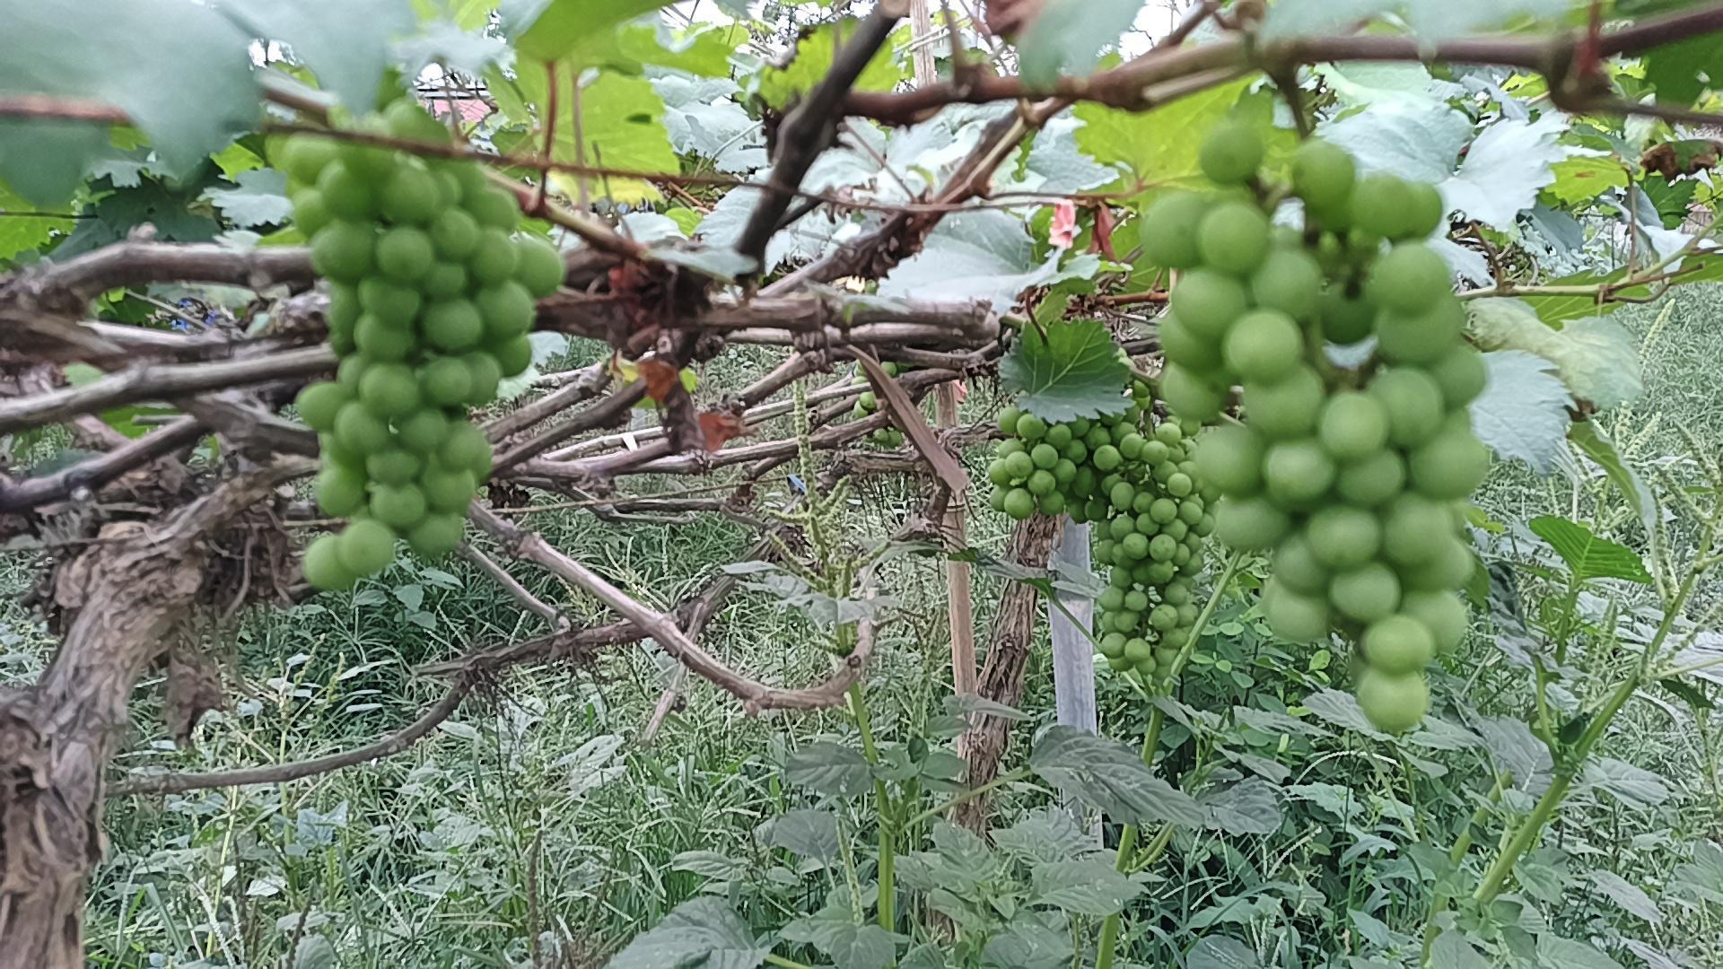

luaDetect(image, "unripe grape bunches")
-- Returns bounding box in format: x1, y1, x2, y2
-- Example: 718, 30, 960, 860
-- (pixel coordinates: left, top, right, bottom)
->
851, 356, 911, 447
988, 348, 1150, 523
286, 138, 563, 588
1093, 421, 1211, 680
1142, 119, 1487, 731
